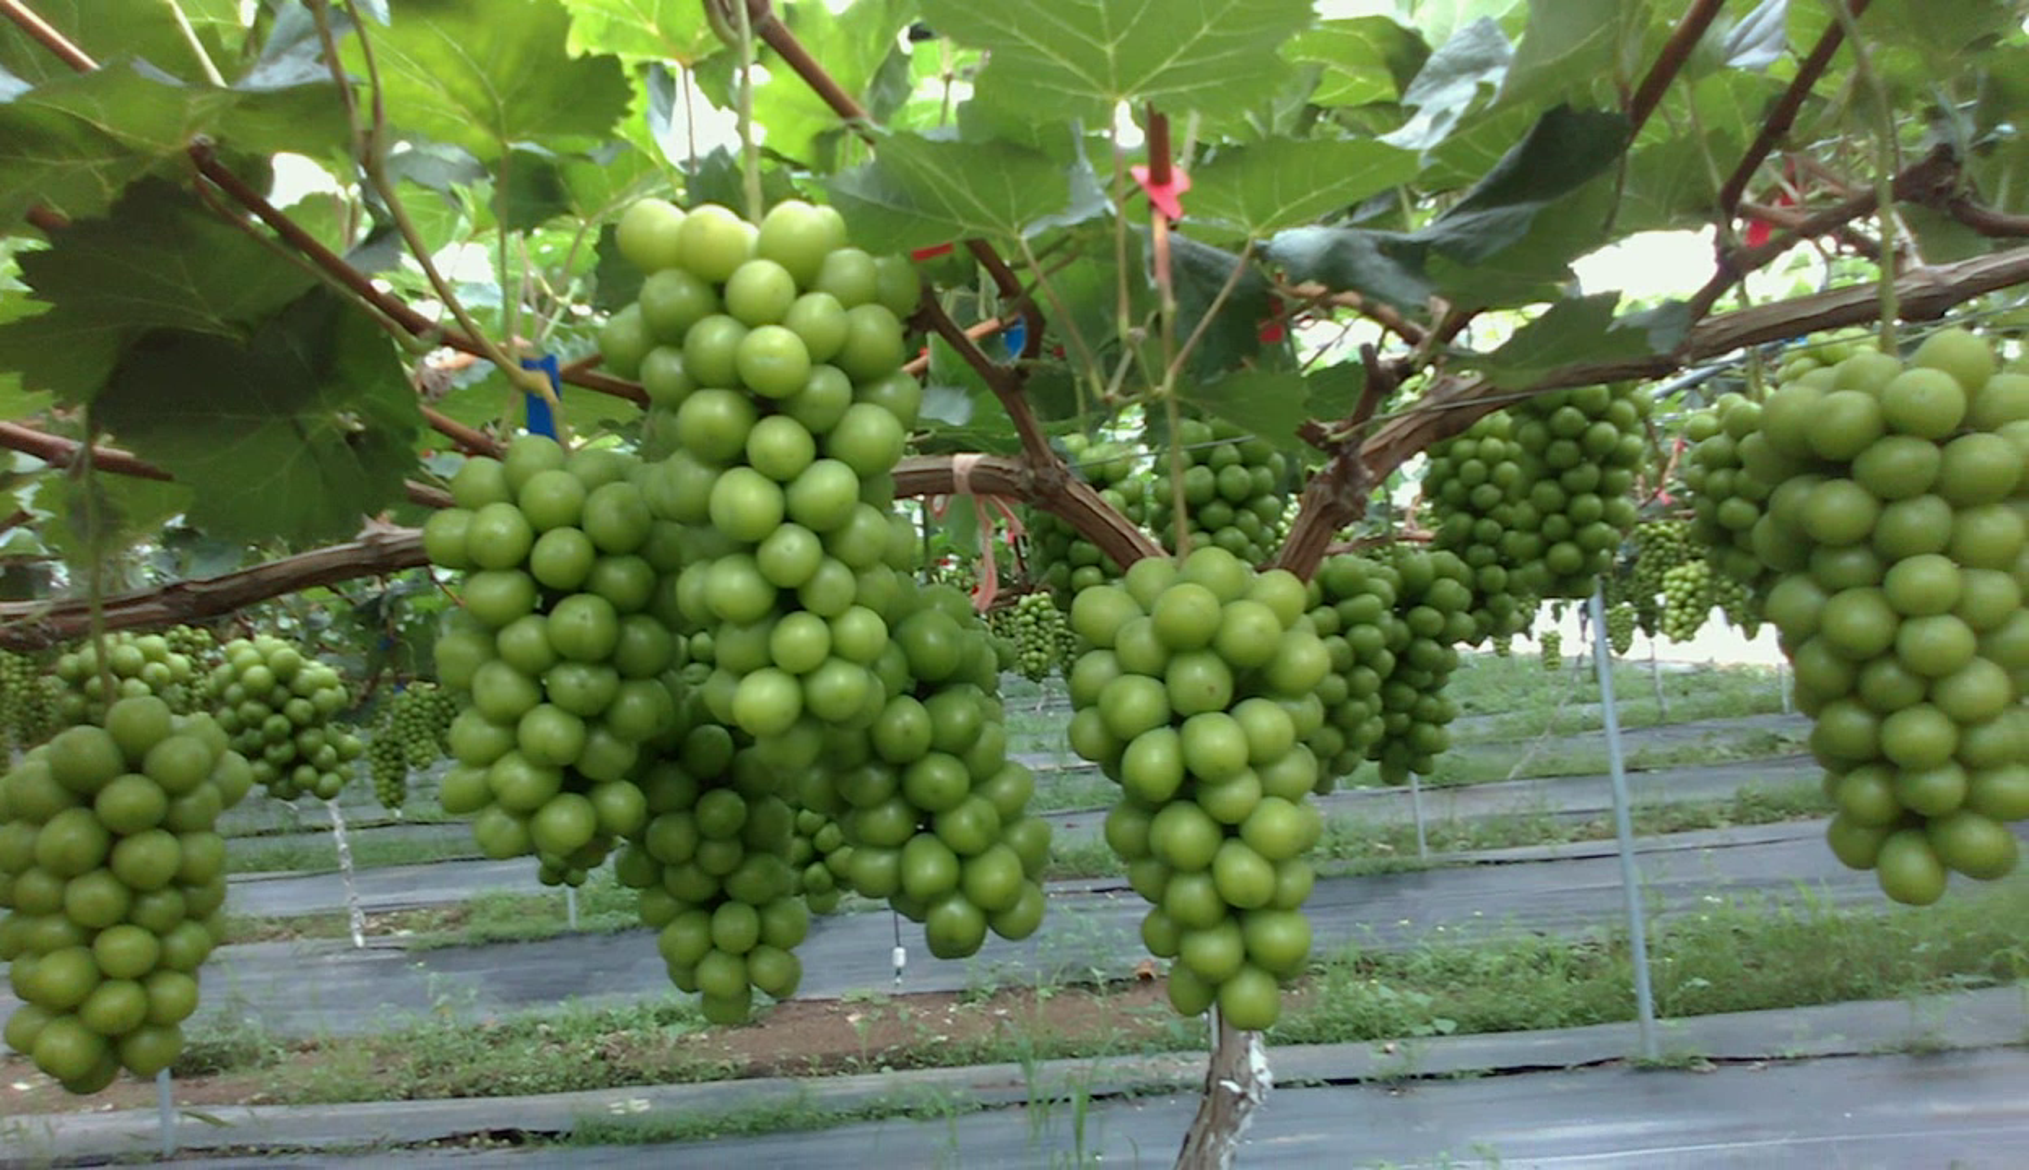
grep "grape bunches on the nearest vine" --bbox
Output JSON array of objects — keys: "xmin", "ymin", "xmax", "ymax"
[
  {"xmin": 1738, "ymin": 328, "xmax": 2027, "ymax": 907},
  {"xmin": 1067, "ymin": 546, "xmax": 1335, "ymax": 1033},
  {"xmin": 613, "ymin": 700, "xmax": 811, "ymax": 1027},
  {"xmin": 602, "ymin": 197, "xmax": 922, "ymax": 772},
  {"xmin": 0, "ymin": 694, "xmax": 252, "ymax": 1094},
  {"xmin": 792, "ymin": 569, "xmax": 1055, "ymax": 962},
  {"xmin": 421, "ymin": 434, "xmax": 688, "ymax": 863}
]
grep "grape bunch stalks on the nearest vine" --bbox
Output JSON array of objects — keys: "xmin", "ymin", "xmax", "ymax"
[
  {"xmin": 80, "ymin": 406, "xmax": 115, "ymax": 707},
  {"xmin": 730, "ymin": 2, "xmax": 763, "ymax": 227},
  {"xmin": 1826, "ymin": 0, "xmax": 1897, "ymax": 353},
  {"xmin": 306, "ymin": 0, "xmax": 572, "ymax": 453},
  {"xmin": 1149, "ymin": 203, "xmax": 1188, "ymax": 570}
]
